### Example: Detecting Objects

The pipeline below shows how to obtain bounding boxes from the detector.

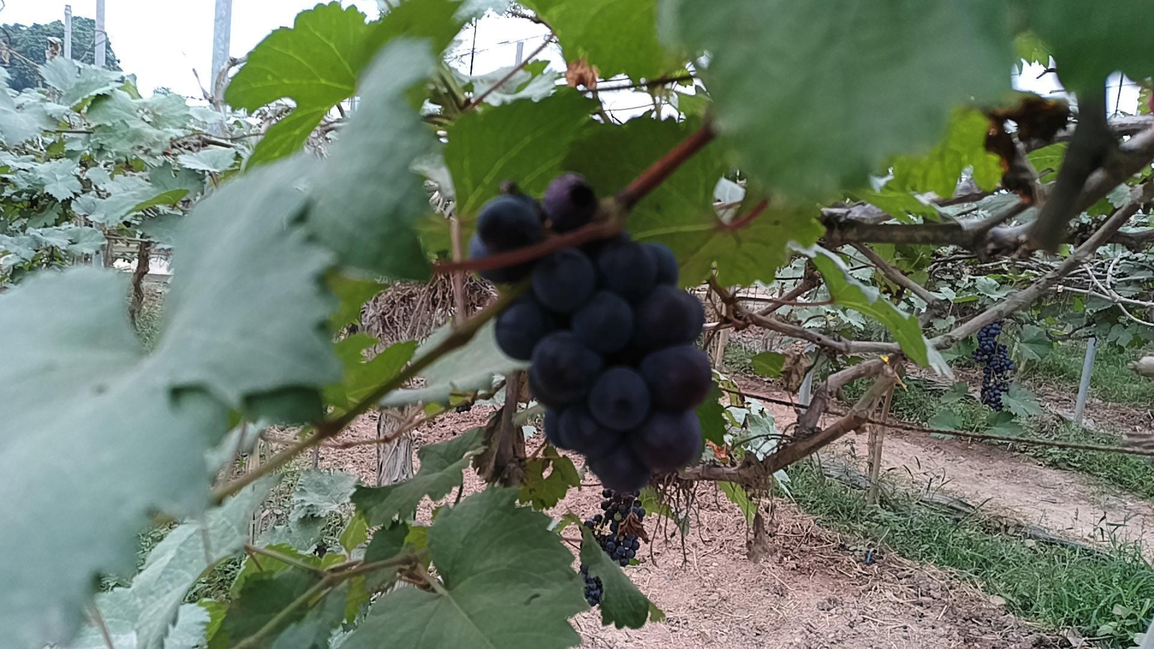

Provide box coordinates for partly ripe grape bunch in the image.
[579,489,646,606]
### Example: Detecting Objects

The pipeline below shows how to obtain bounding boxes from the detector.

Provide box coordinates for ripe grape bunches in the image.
[439,172,712,492]
[972,320,1012,411]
